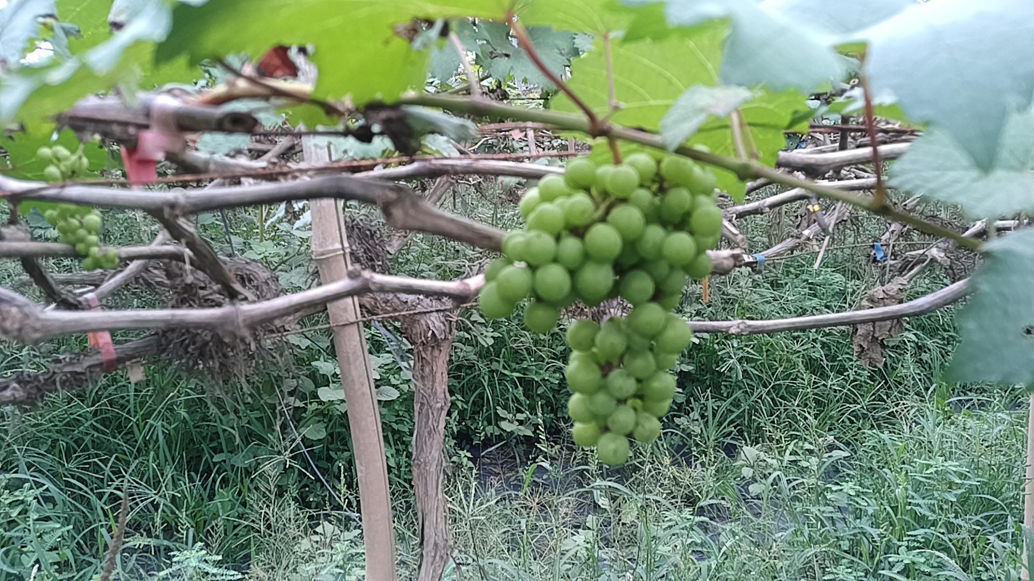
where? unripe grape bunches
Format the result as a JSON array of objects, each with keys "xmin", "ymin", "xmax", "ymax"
[
  {"xmin": 480, "ymin": 153, "xmax": 721, "ymax": 333},
  {"xmin": 565, "ymin": 303, "xmax": 690, "ymax": 466},
  {"xmin": 36, "ymin": 146, "xmax": 116, "ymax": 272}
]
